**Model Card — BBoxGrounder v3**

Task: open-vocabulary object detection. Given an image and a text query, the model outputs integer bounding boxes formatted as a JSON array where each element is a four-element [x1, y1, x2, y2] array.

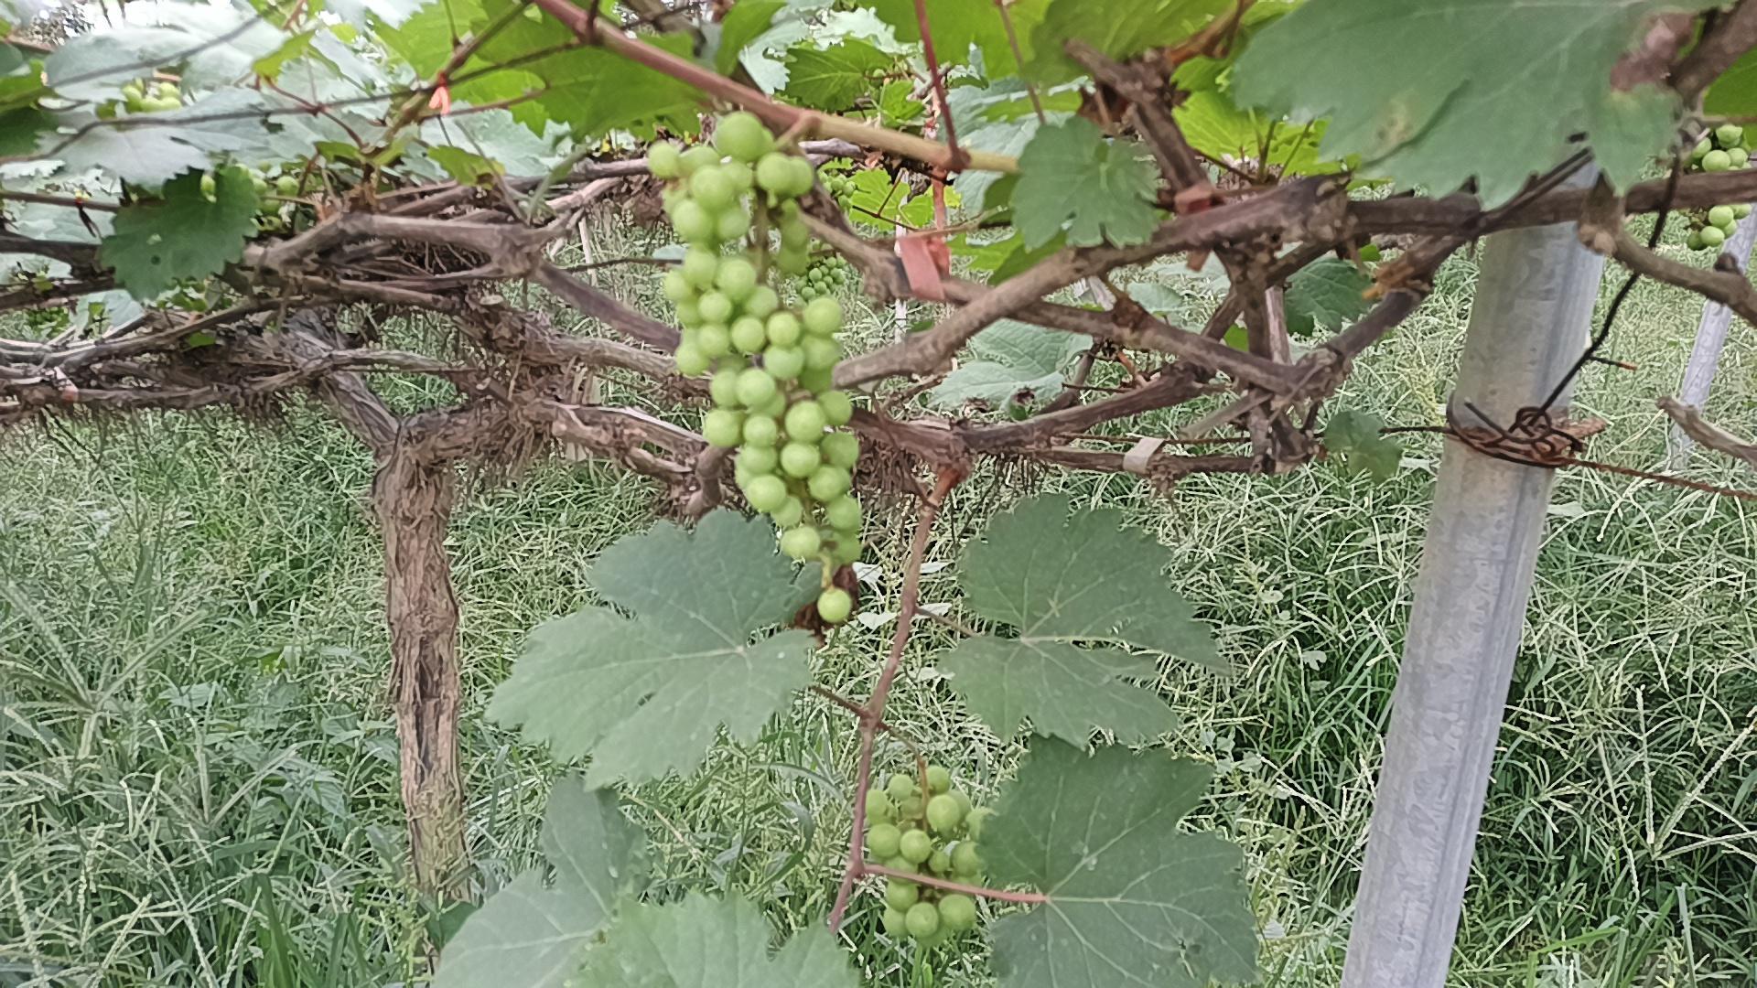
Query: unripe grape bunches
[[22, 303, 65, 328], [96, 81, 183, 119], [200, 169, 216, 202], [648, 112, 862, 624], [240, 161, 299, 215], [798, 241, 847, 302], [817, 168, 857, 210], [156, 282, 209, 313], [1683, 123, 1756, 251], [866, 766, 987, 946]]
